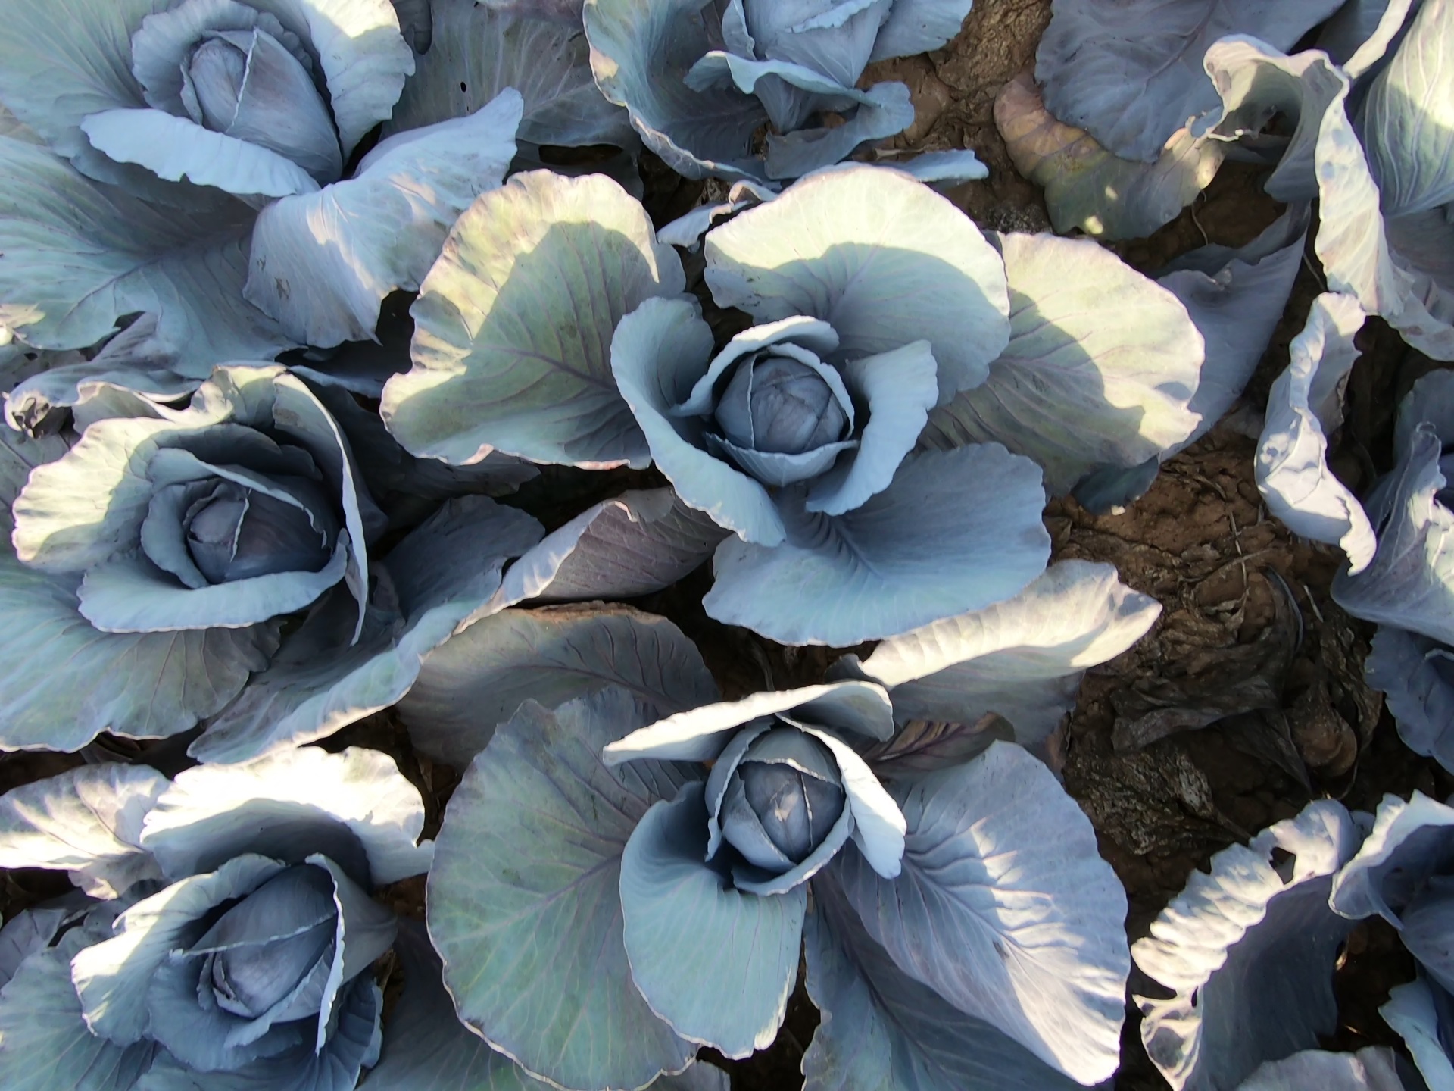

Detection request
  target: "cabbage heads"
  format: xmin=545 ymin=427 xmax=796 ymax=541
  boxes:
xmin=191 ymin=32 xmax=320 ymax=161
xmin=187 ymin=477 xmax=332 ymax=586
xmin=732 ymin=355 xmax=850 ymax=465
xmin=209 ymin=878 xmax=348 ymax=1024
xmin=719 ymin=732 xmax=850 ymax=871
xmin=739 ymin=2 xmax=876 ymax=70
